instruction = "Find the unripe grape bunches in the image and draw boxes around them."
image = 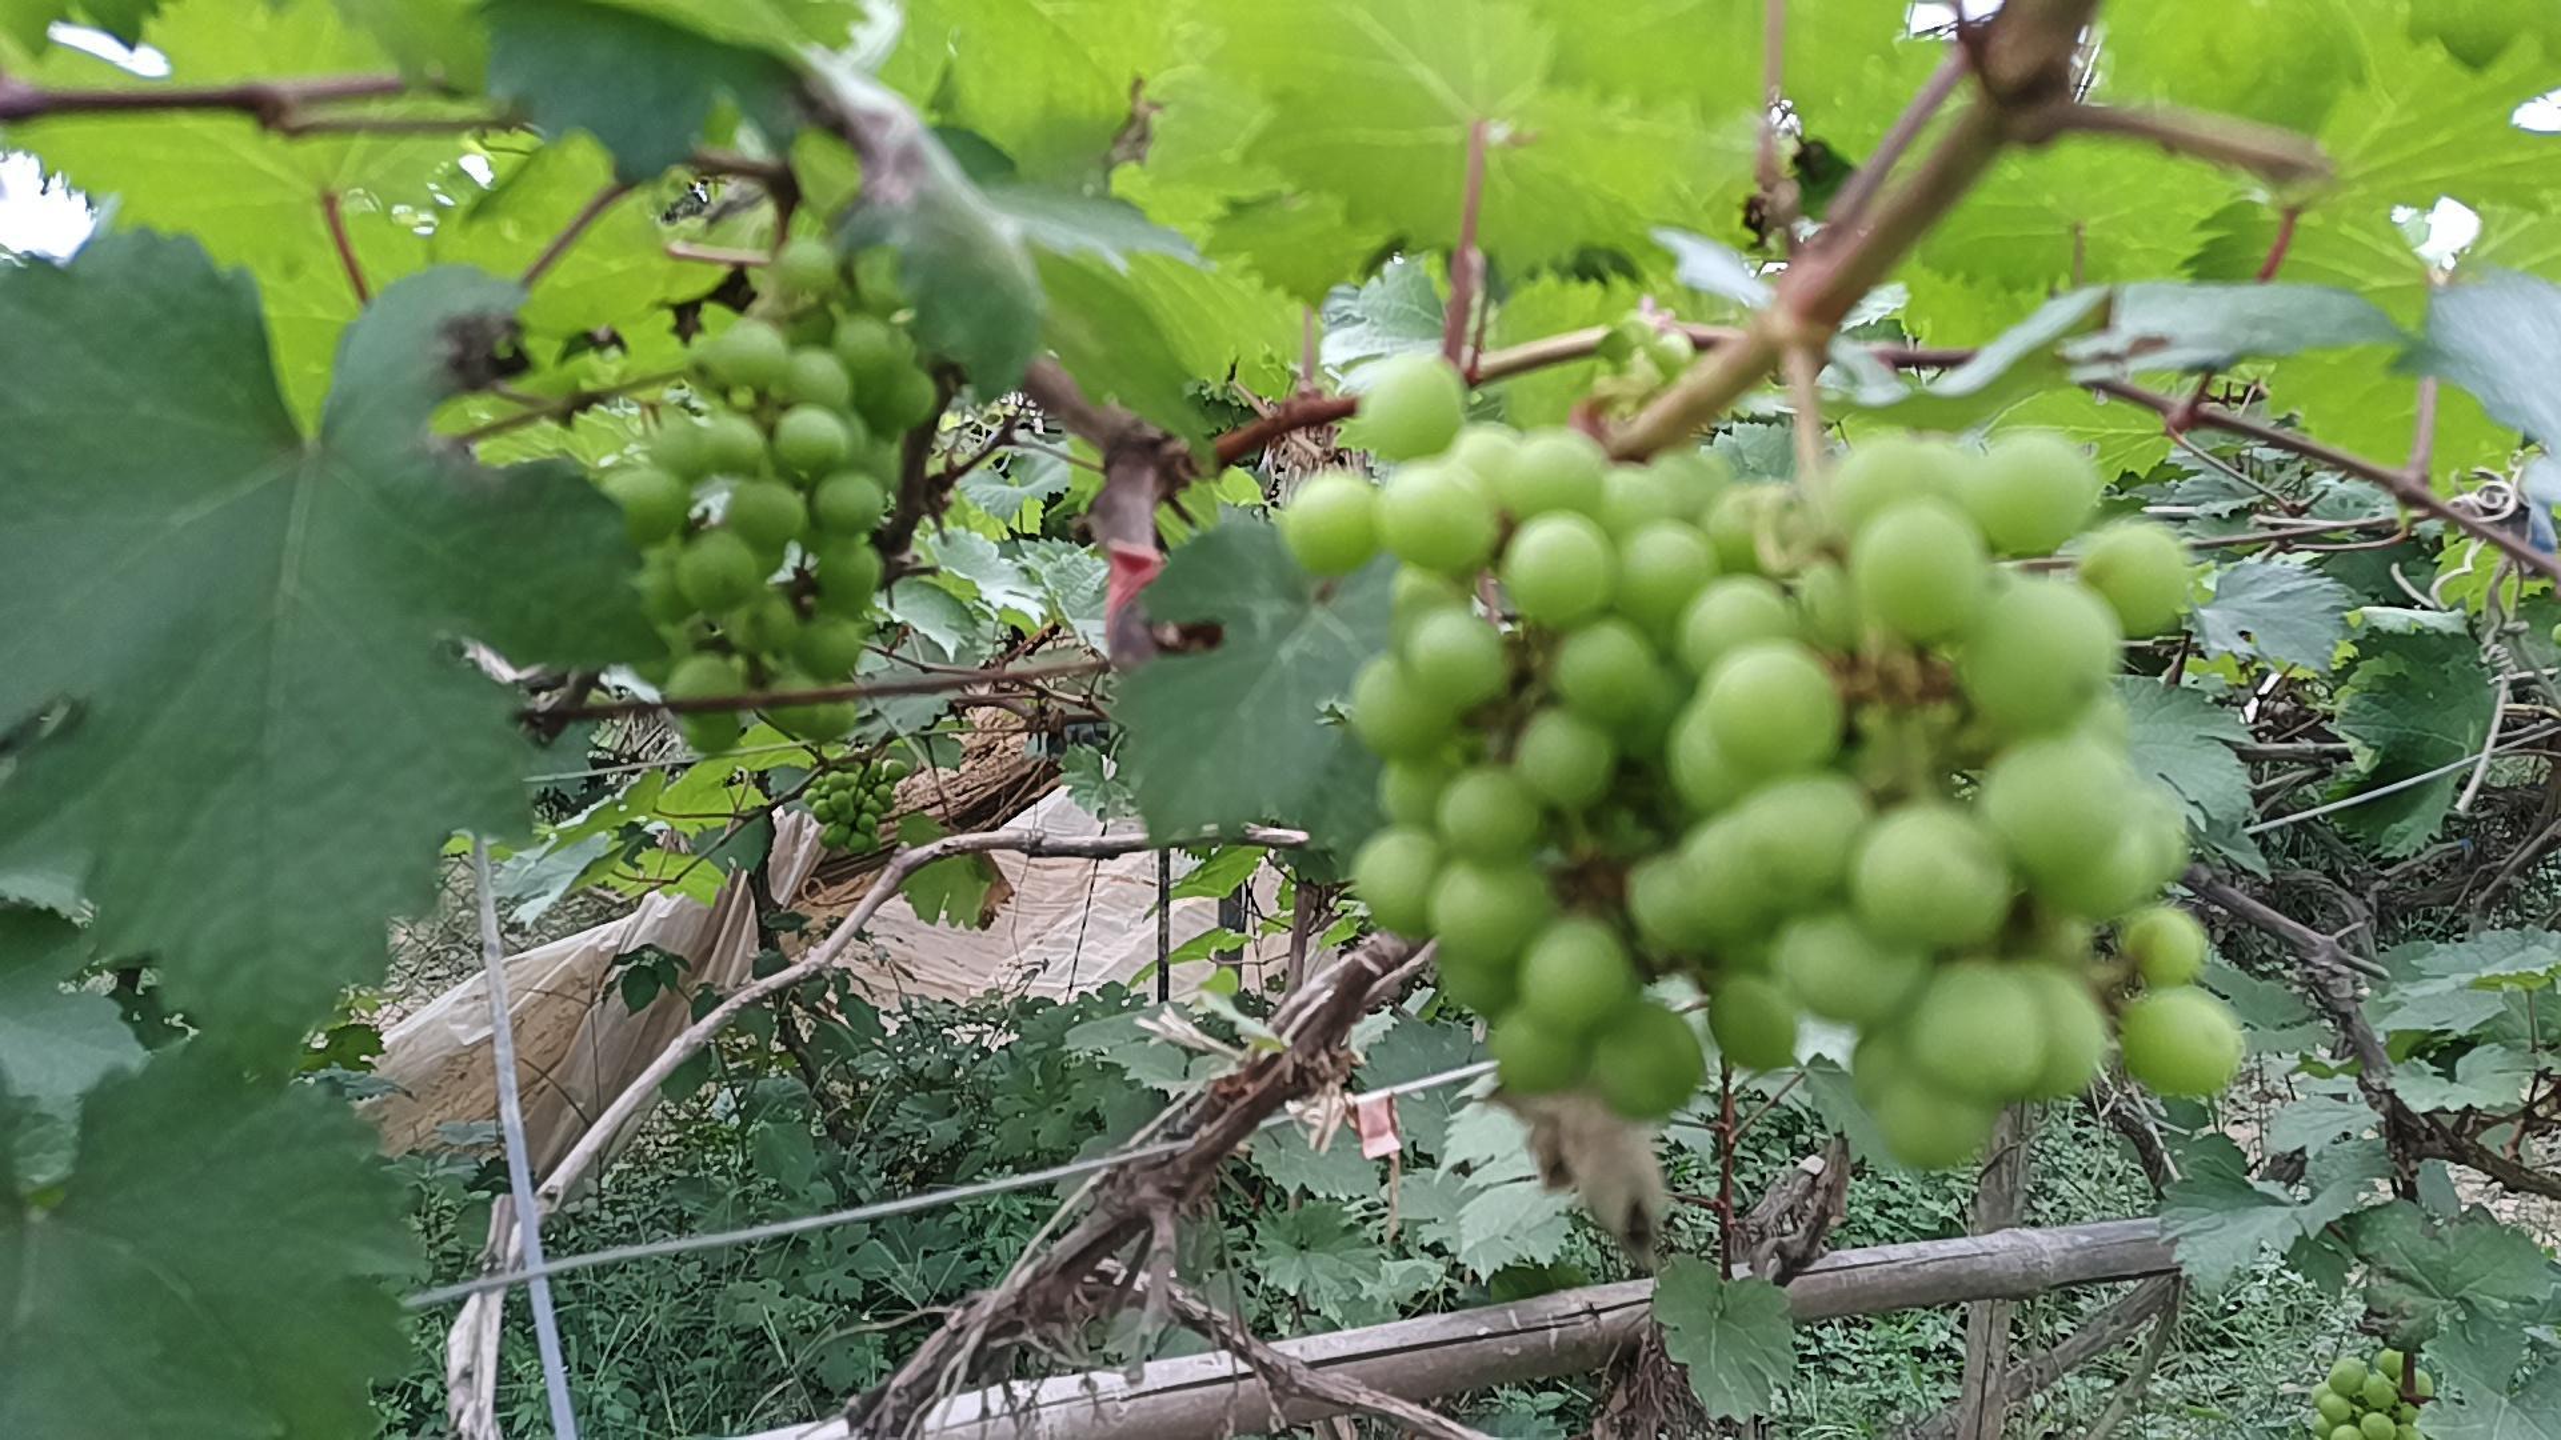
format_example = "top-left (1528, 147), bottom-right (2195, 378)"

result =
top-left (803, 757), bottom-right (911, 855)
top-left (1280, 356), bottom-right (2238, 1168)
top-left (602, 237), bottom-right (935, 752)
top-left (2312, 1349), bottom-right (2432, 1439)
